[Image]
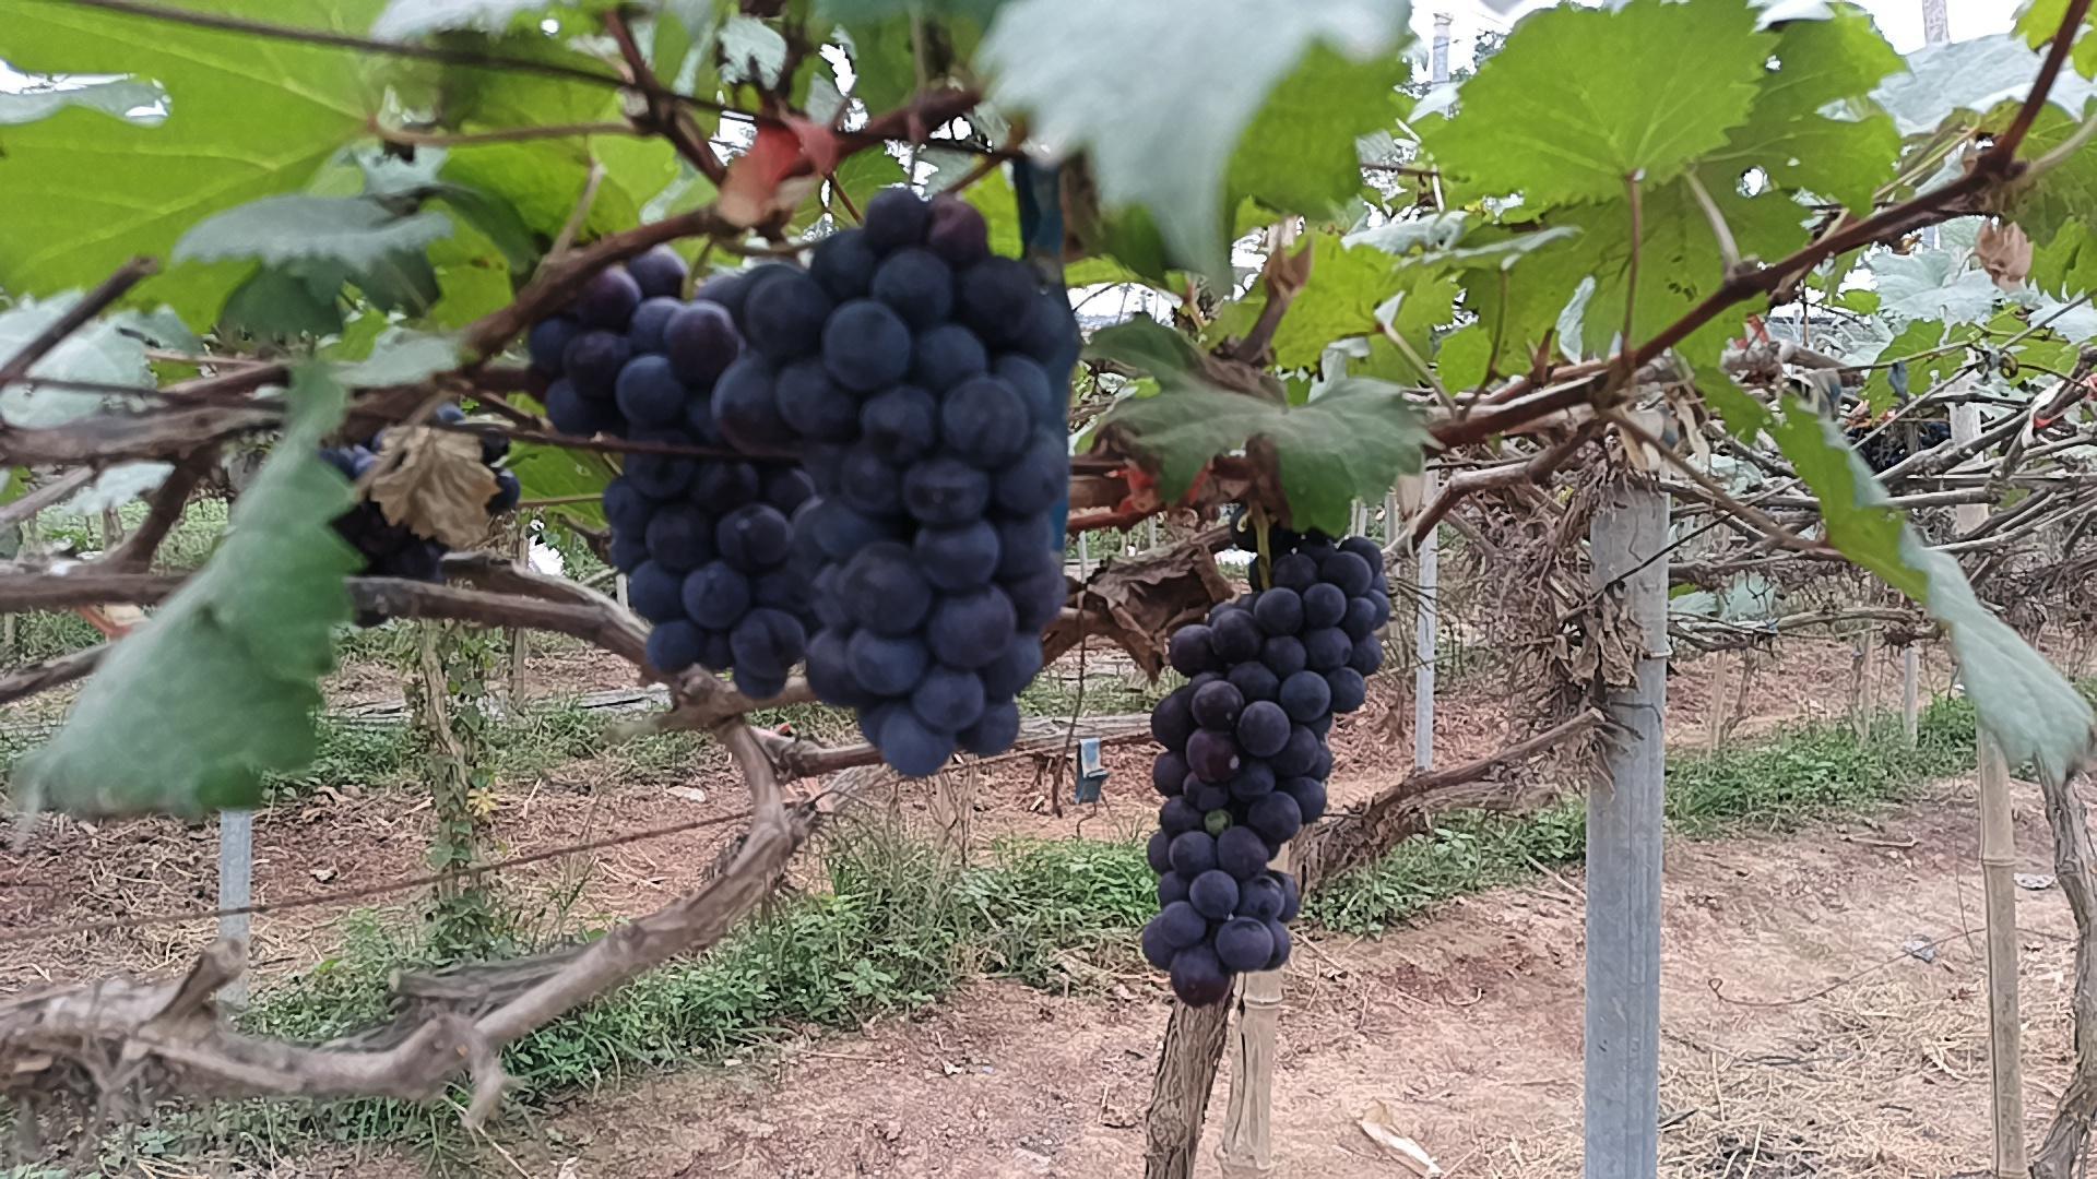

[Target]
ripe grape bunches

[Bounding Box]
[524,189,1078,775]
[312,401,525,627]
[1141,522,1389,1005]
